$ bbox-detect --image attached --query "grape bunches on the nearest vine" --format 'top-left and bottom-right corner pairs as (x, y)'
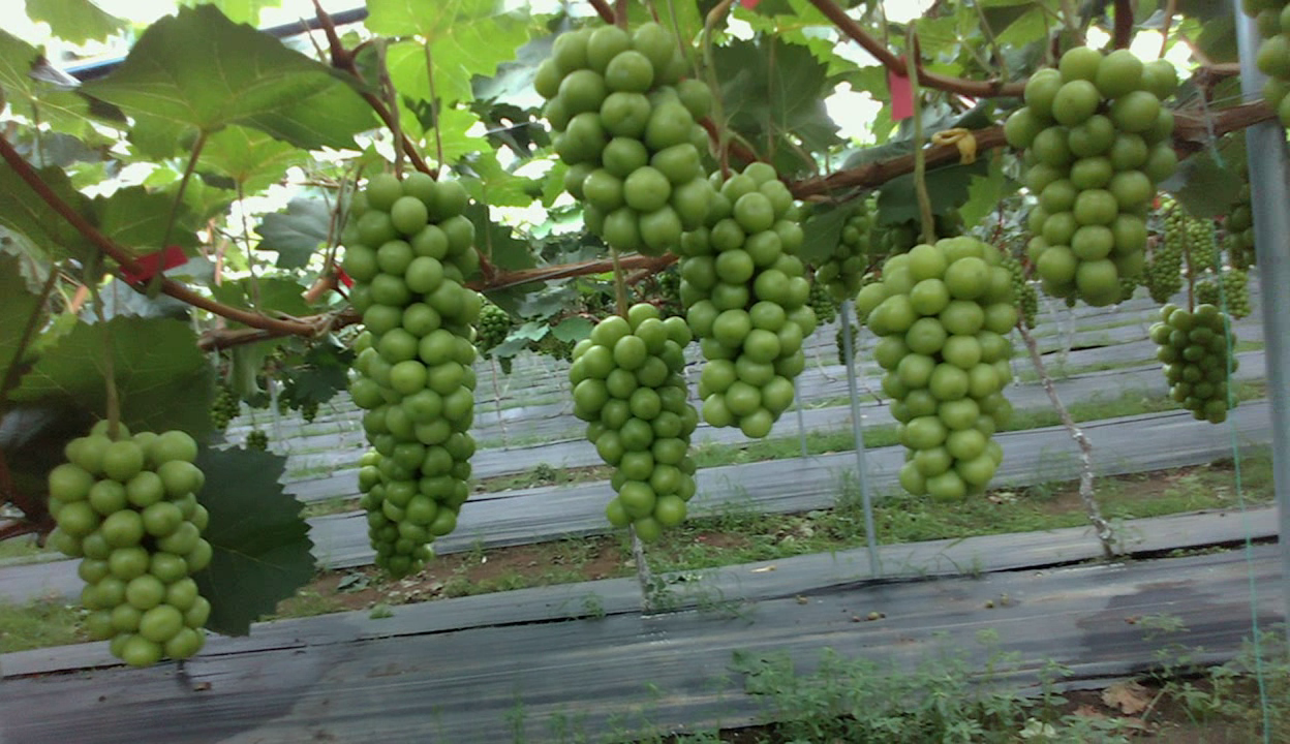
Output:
(678, 163), (816, 437)
(569, 303), (696, 542)
(856, 237), (1016, 501)
(351, 334), (477, 540)
(533, 23), (714, 259)
(48, 421), (213, 667)
(1003, 45), (1177, 306)
(342, 172), (481, 443)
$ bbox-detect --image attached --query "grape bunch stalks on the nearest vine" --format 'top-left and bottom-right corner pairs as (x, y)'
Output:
(702, 0), (733, 178)
(346, 36), (403, 181)
(902, 19), (932, 243)
(85, 243), (120, 441)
